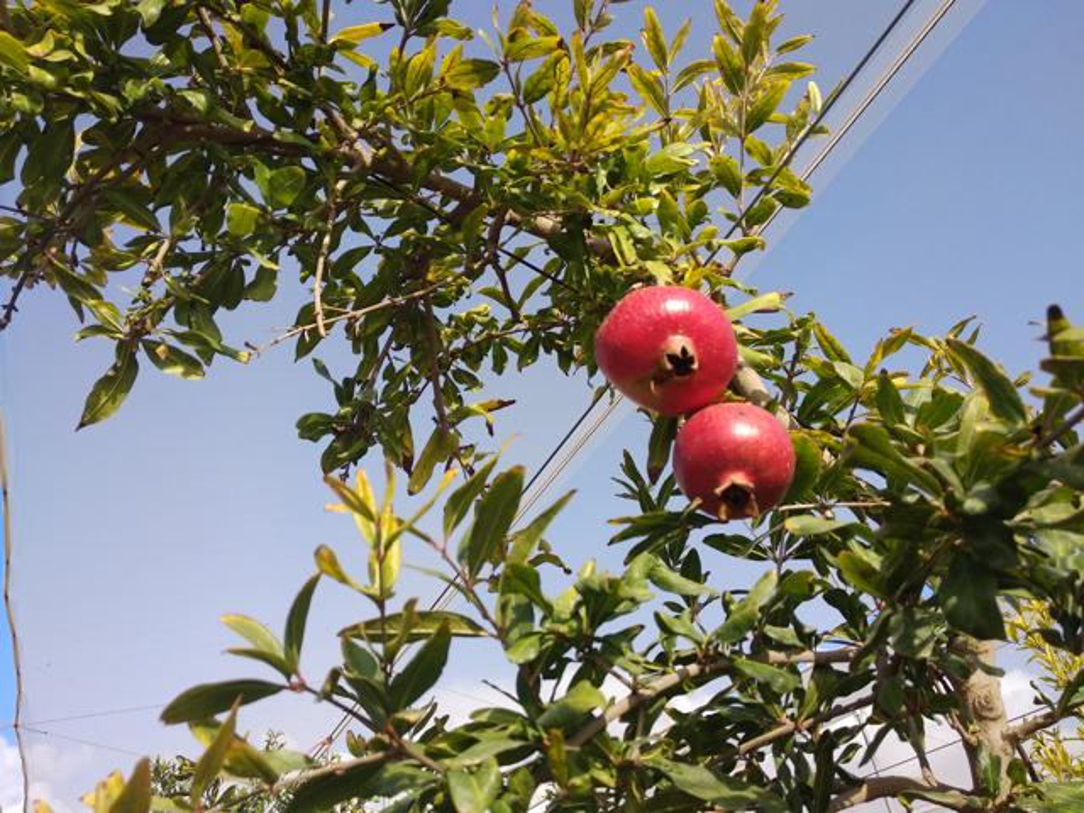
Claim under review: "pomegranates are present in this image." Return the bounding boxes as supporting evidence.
[671,401,796,523]
[595,285,738,417]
